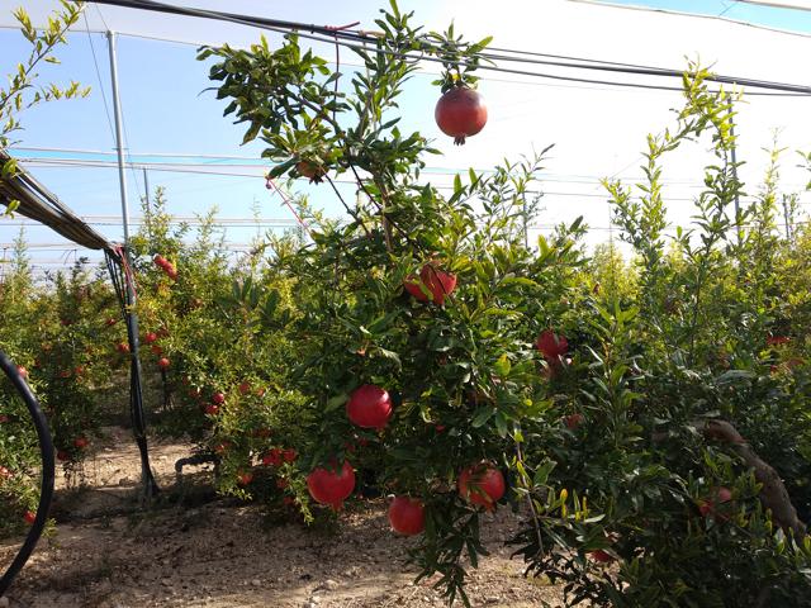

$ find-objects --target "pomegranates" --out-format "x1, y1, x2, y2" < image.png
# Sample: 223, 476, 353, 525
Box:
389, 495, 427, 536
297, 161, 324, 185
457, 467, 507, 514
698, 485, 732, 518
403, 267, 457, 304
435, 87, 488, 146
536, 331, 569, 364
308, 459, 357, 514
589, 548, 613, 562
348, 383, 394, 434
